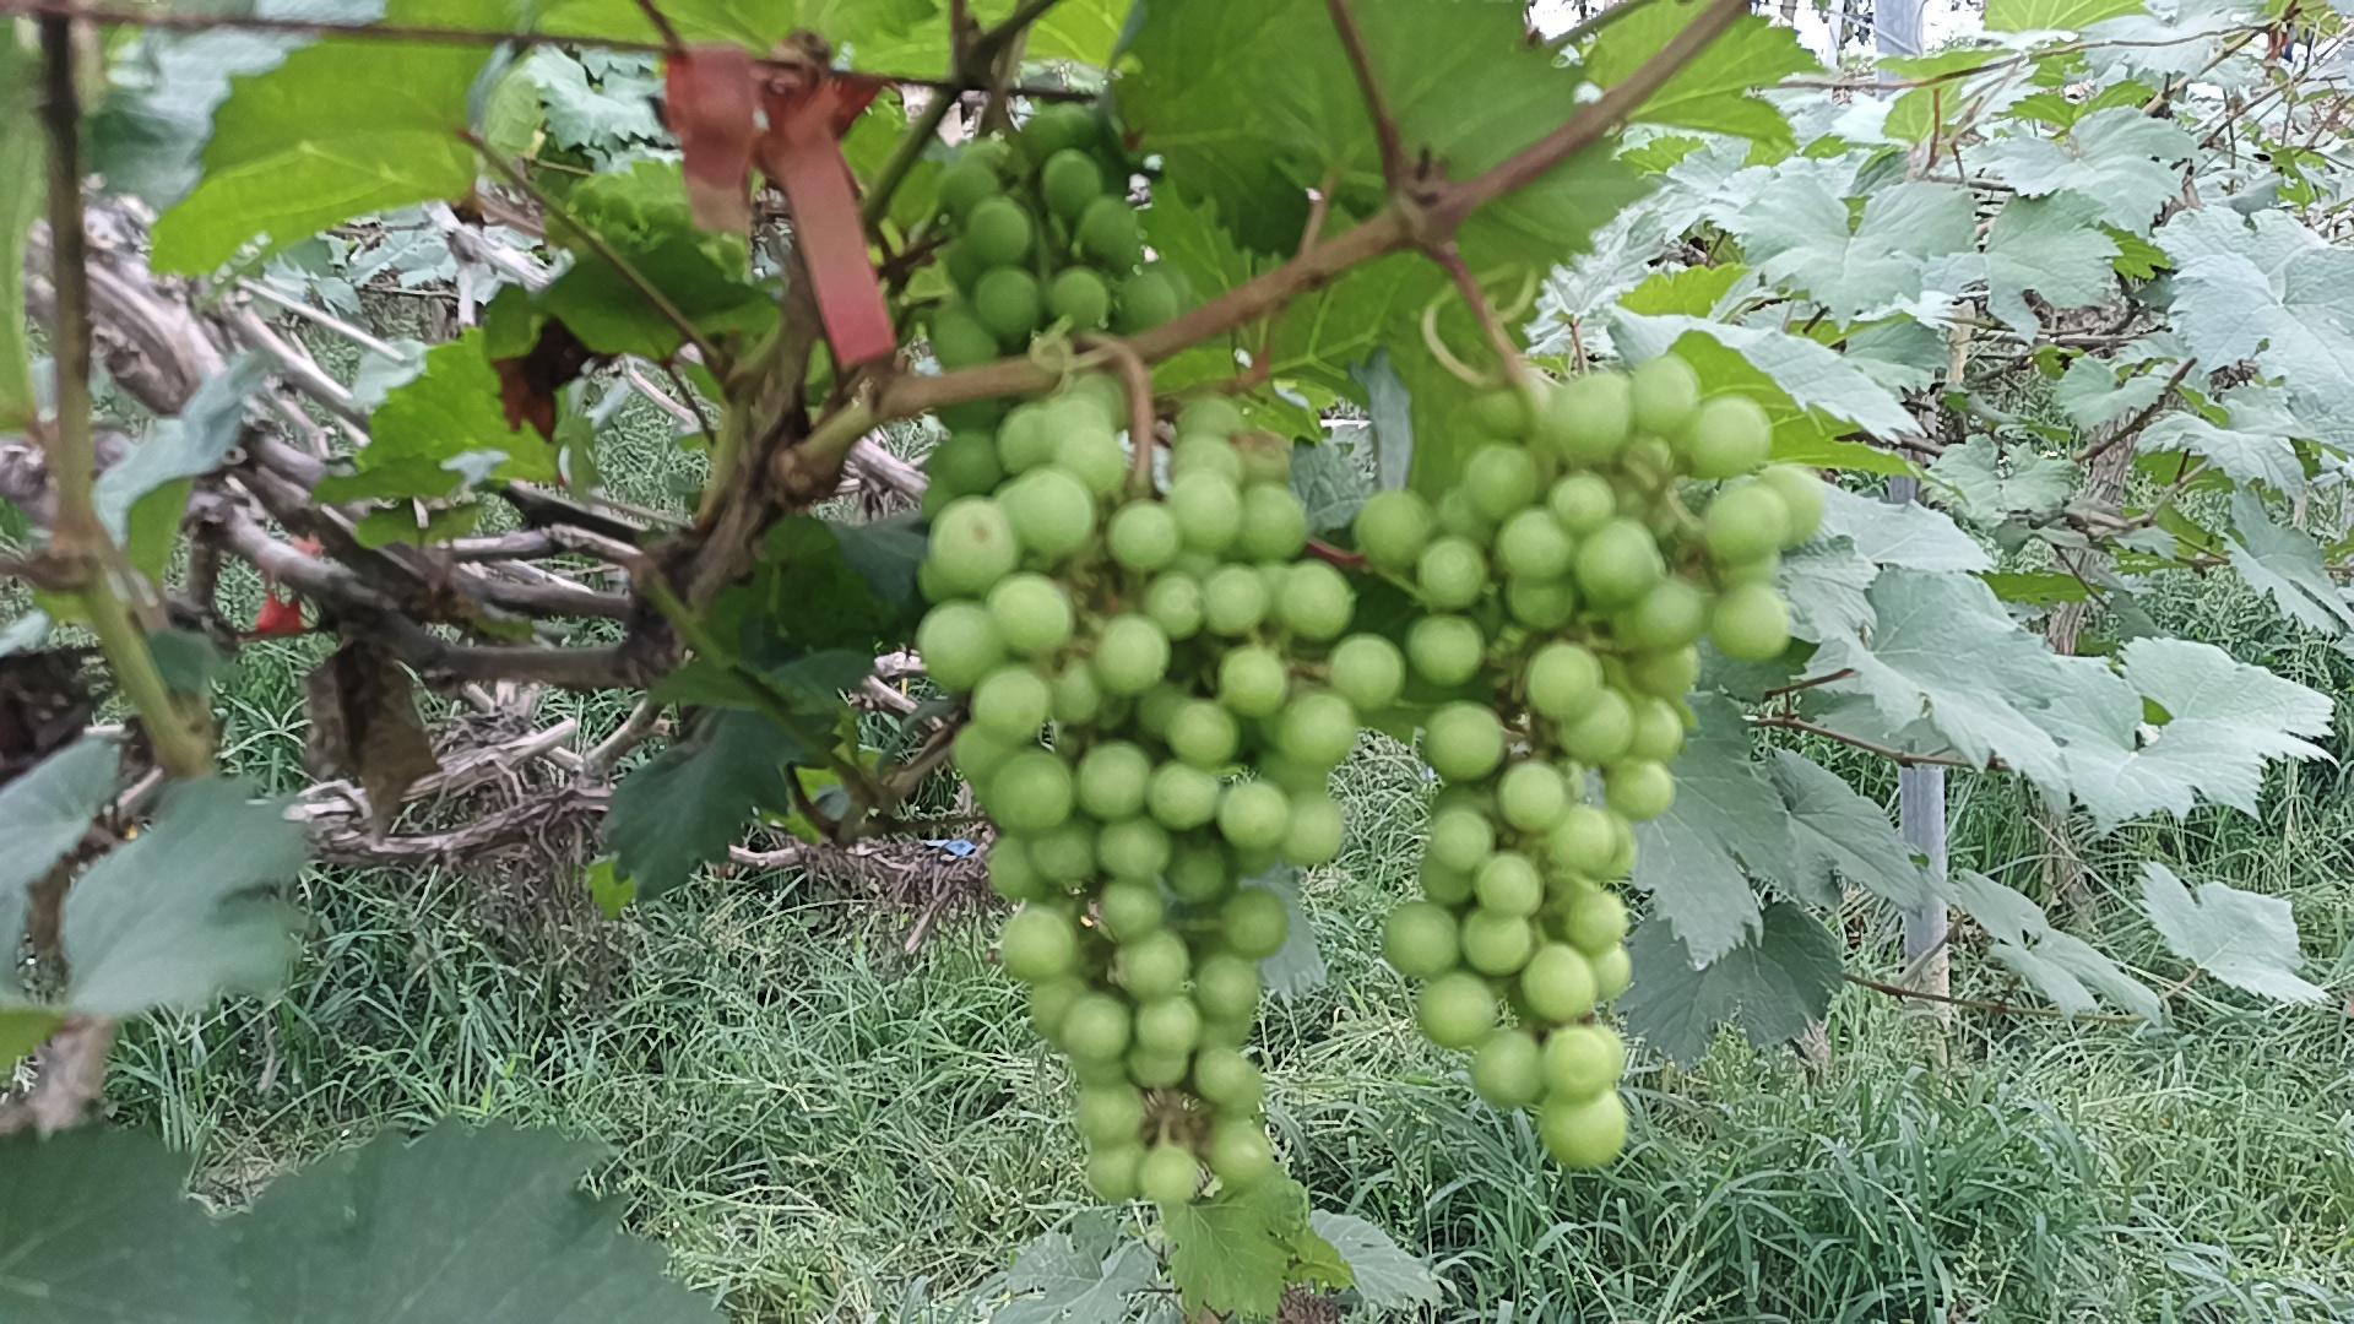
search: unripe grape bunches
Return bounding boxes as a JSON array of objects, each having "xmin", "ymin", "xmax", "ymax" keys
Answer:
[
  {"xmin": 565, "ymin": 178, "xmax": 749, "ymax": 280},
  {"xmin": 918, "ymin": 112, "xmax": 1356, "ymax": 1238},
  {"xmin": 1354, "ymin": 356, "xmax": 1821, "ymax": 1166}
]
